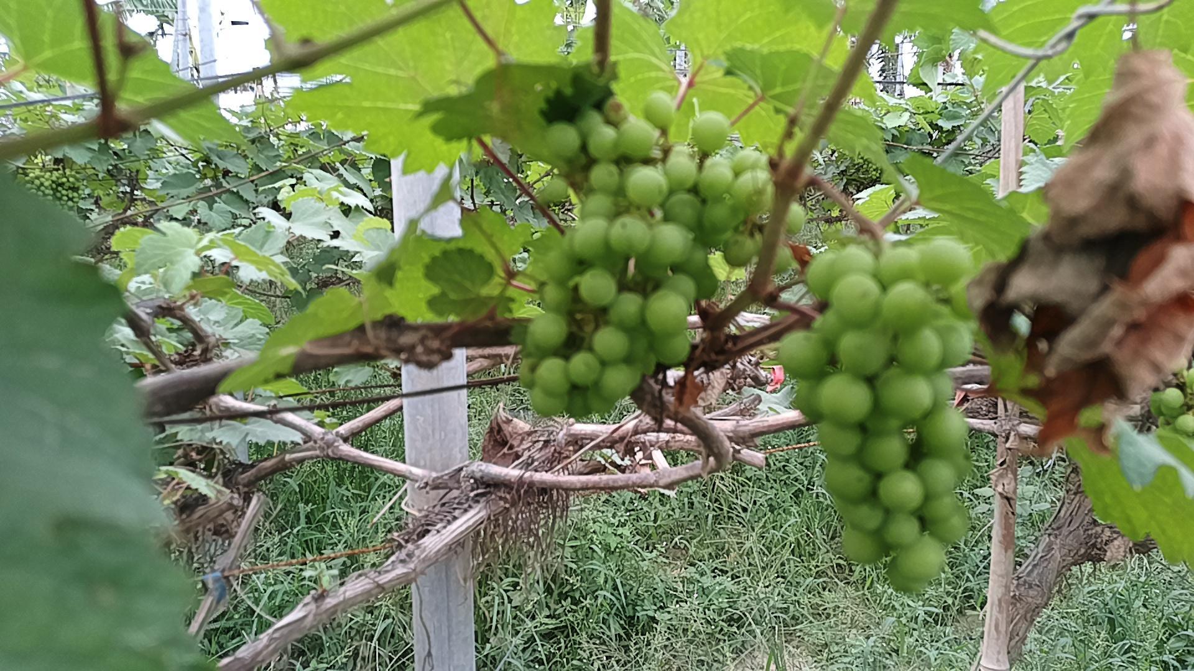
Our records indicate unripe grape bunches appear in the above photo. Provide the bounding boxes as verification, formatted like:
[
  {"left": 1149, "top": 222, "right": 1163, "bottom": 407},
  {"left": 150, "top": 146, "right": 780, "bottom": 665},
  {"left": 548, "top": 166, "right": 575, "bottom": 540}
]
[
  {"left": 1150, "top": 369, "right": 1193, "bottom": 440},
  {"left": 522, "top": 91, "right": 805, "bottom": 416},
  {"left": 778, "top": 239, "right": 973, "bottom": 591},
  {"left": 16, "top": 163, "right": 81, "bottom": 210}
]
